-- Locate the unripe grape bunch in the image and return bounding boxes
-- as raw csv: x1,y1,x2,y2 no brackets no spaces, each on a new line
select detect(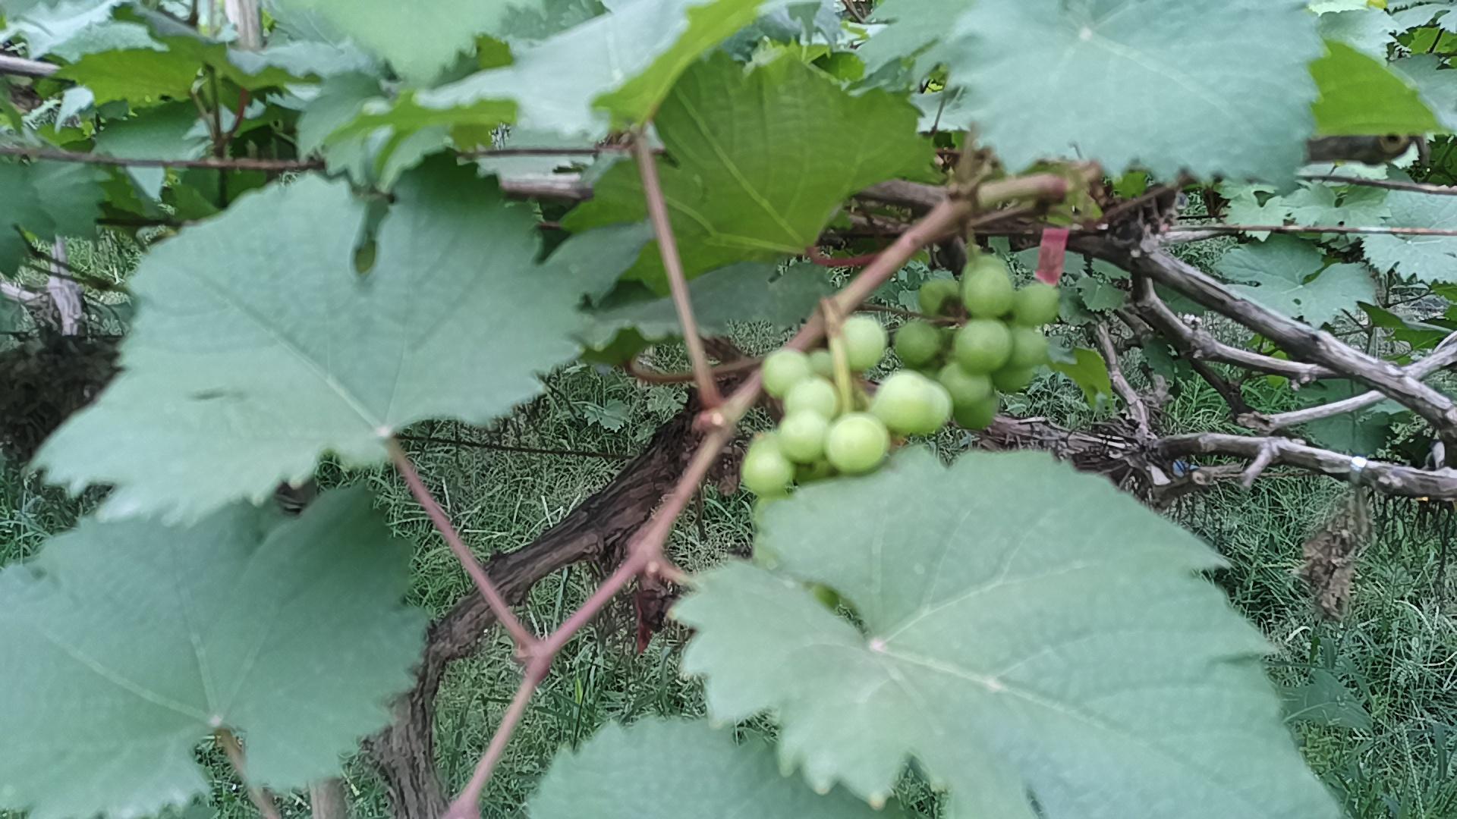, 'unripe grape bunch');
742,249,1057,509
